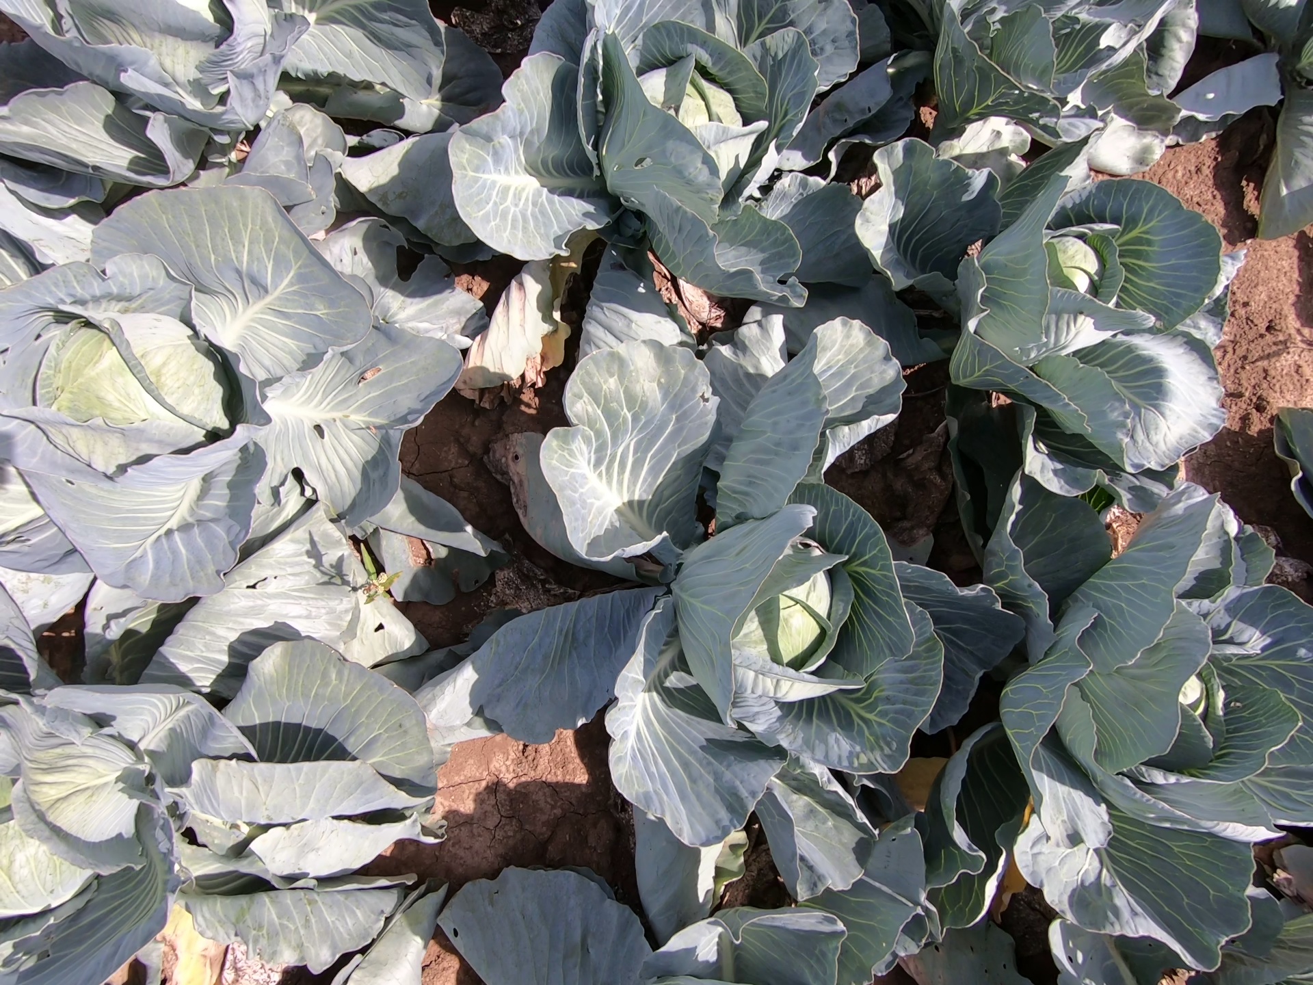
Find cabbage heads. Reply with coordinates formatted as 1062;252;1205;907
1015;234;1118;350
1111;644;1225;763
613;67;749;207
90;1;250;80
693;536;841;683
40;315;229;469
1;724;142;919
